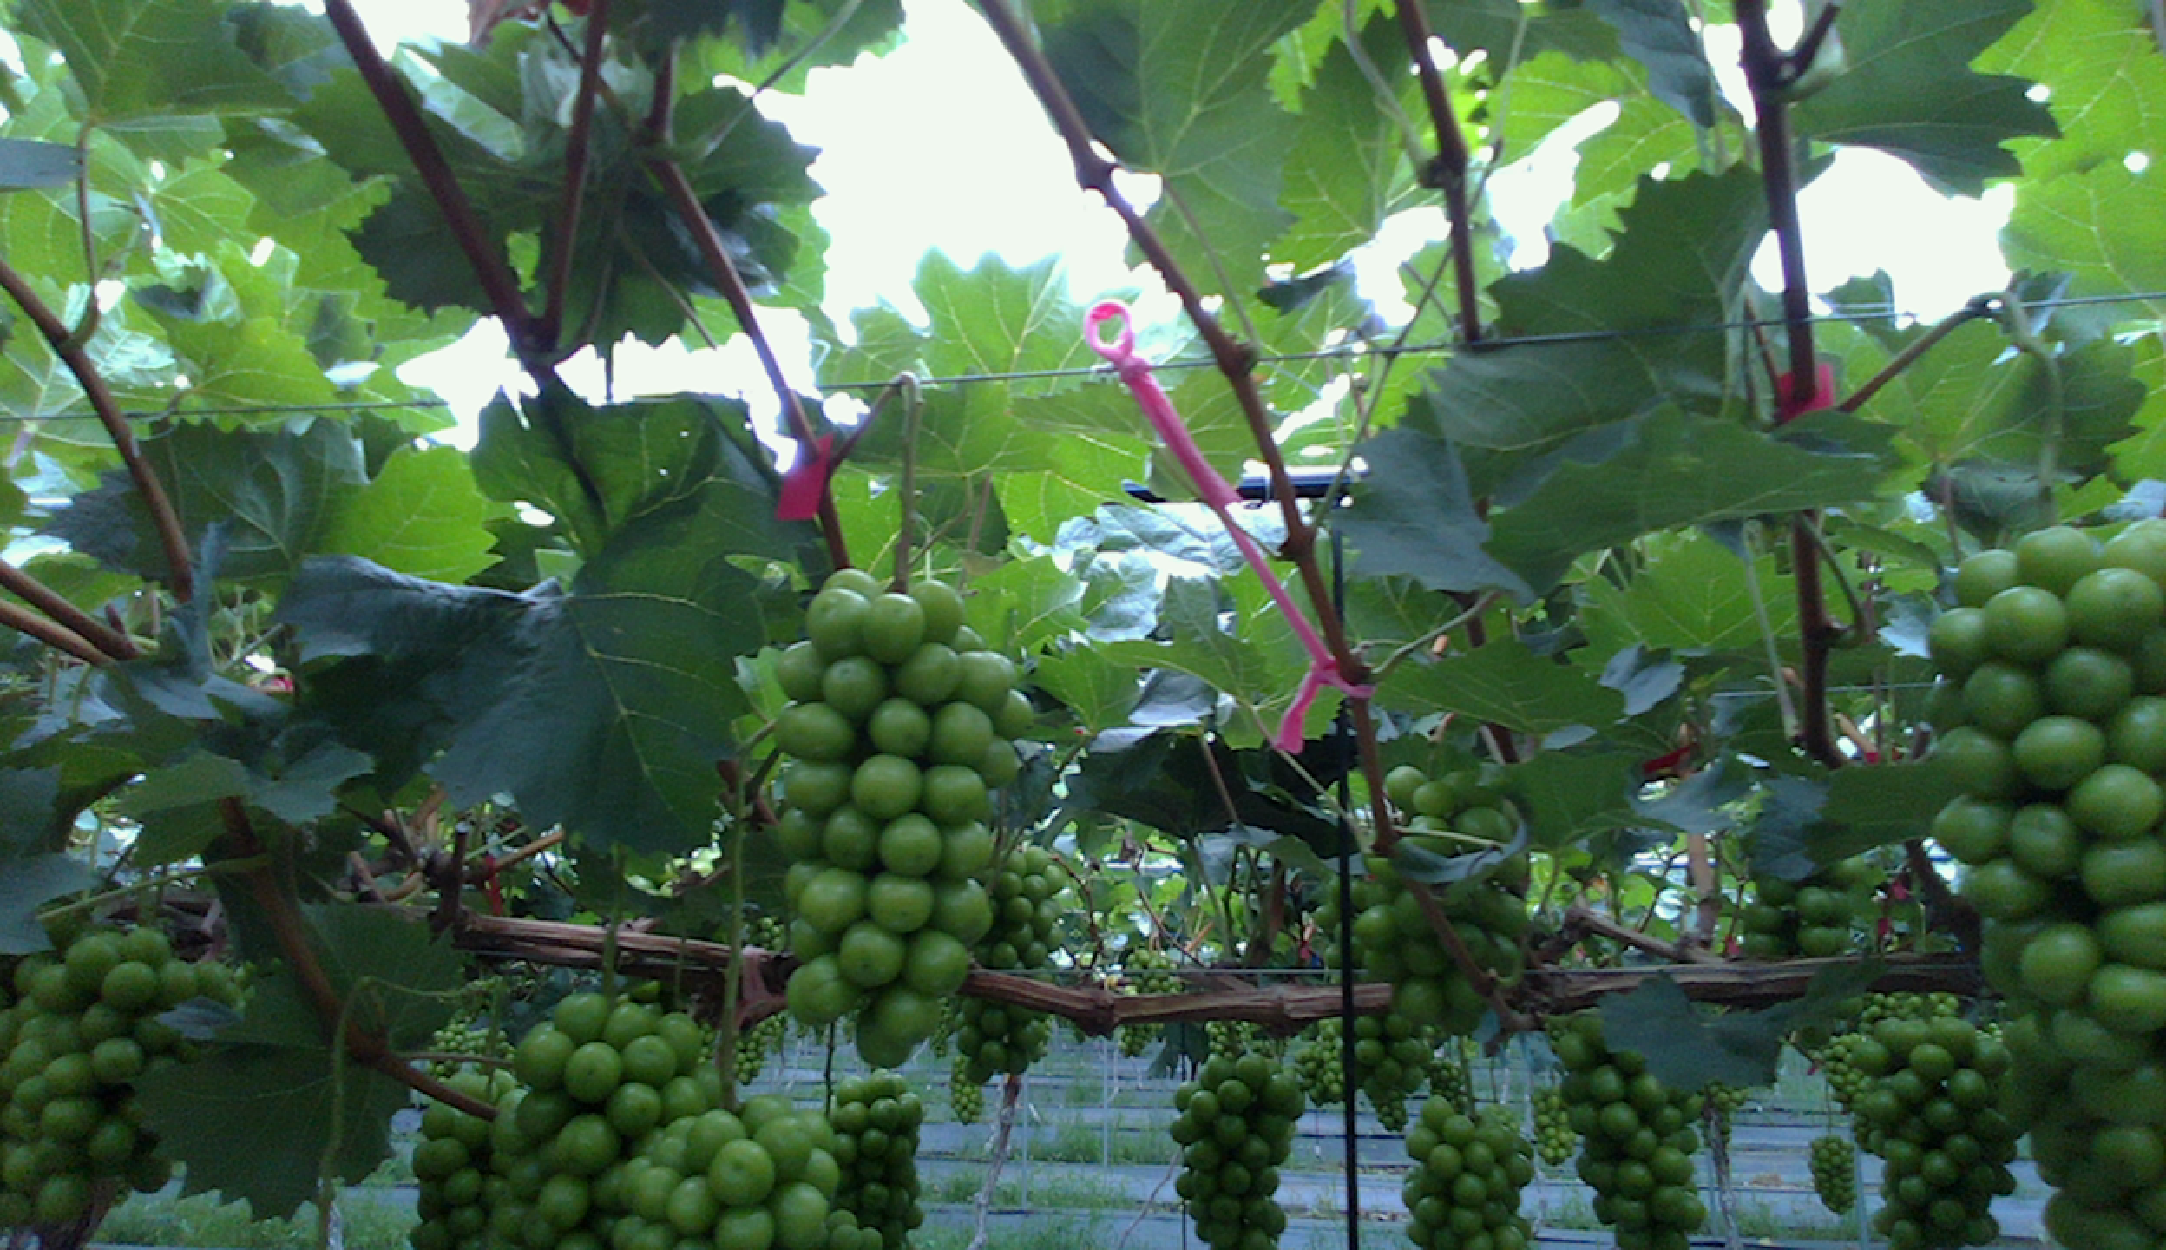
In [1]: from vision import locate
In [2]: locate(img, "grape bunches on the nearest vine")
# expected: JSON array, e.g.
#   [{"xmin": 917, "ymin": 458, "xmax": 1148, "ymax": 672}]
[
  {"xmin": 488, "ymin": 991, "xmax": 727, "ymax": 1248},
  {"xmin": 1920, "ymin": 514, "xmax": 2164, "ymax": 1189},
  {"xmin": 609, "ymin": 1092, "xmax": 840, "ymax": 1248},
  {"xmin": 811, "ymin": 1210, "xmax": 880, "ymax": 1248},
  {"xmin": 0, "ymin": 922, "xmax": 241, "ymax": 1227},
  {"xmin": 1350, "ymin": 766, "xmax": 1529, "ymax": 1040},
  {"xmin": 771, "ymin": 568, "xmax": 1036, "ymax": 1071},
  {"xmin": 2008, "ymin": 1092, "xmax": 2164, "ymax": 1248}
]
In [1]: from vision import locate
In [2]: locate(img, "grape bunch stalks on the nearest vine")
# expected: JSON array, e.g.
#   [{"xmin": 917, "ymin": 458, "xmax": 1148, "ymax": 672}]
[
  {"xmin": 828, "ymin": 370, "xmax": 925, "ymax": 594},
  {"xmin": 715, "ymin": 717, "xmax": 772, "ymax": 1116},
  {"xmin": 602, "ymin": 845, "xmax": 627, "ymax": 1010},
  {"xmin": 1835, "ymin": 288, "xmax": 2064, "ymax": 526}
]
